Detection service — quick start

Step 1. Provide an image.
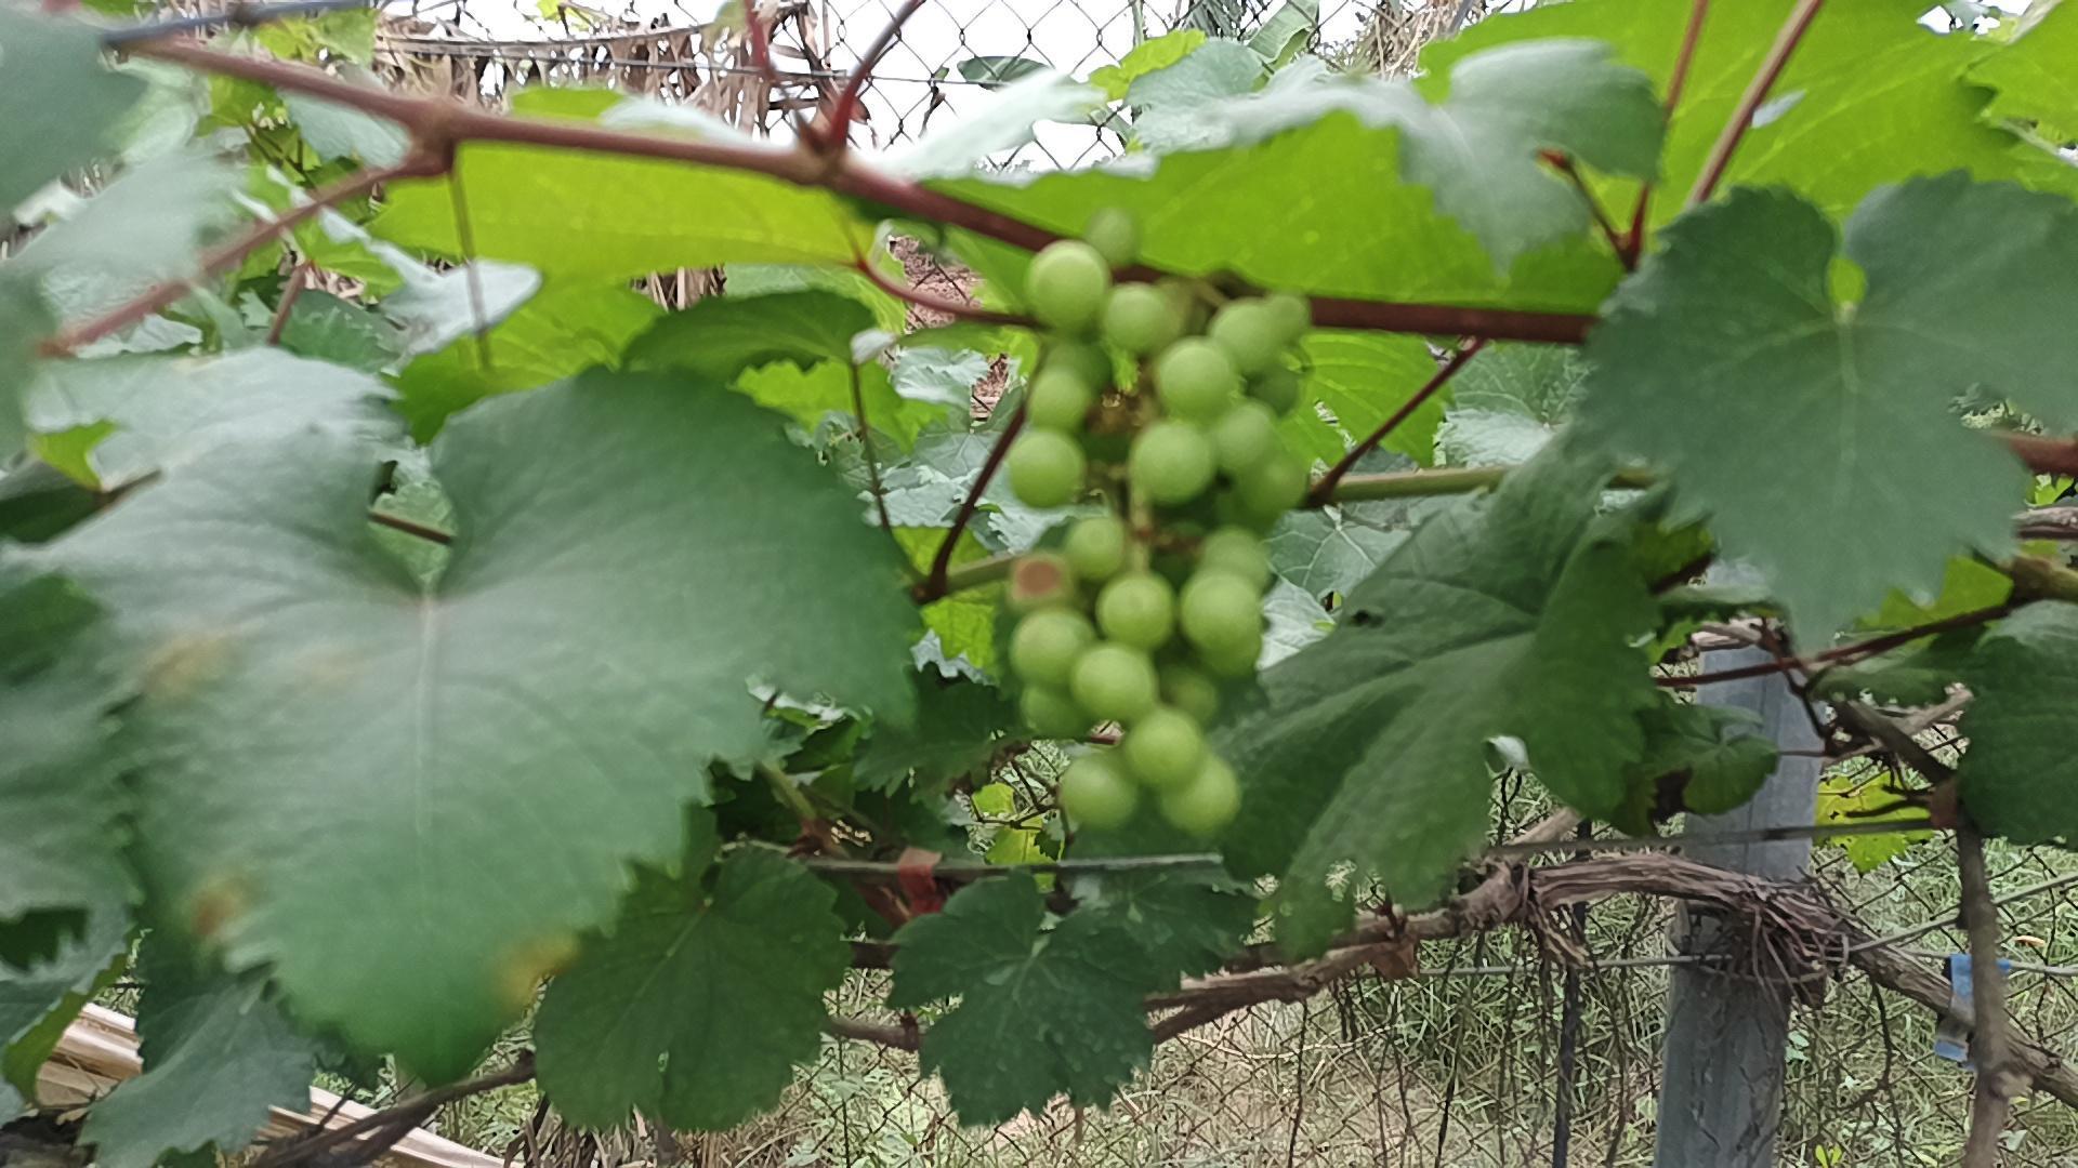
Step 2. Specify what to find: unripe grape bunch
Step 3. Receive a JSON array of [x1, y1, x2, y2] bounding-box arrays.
[[1001, 210, 1313, 837]]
